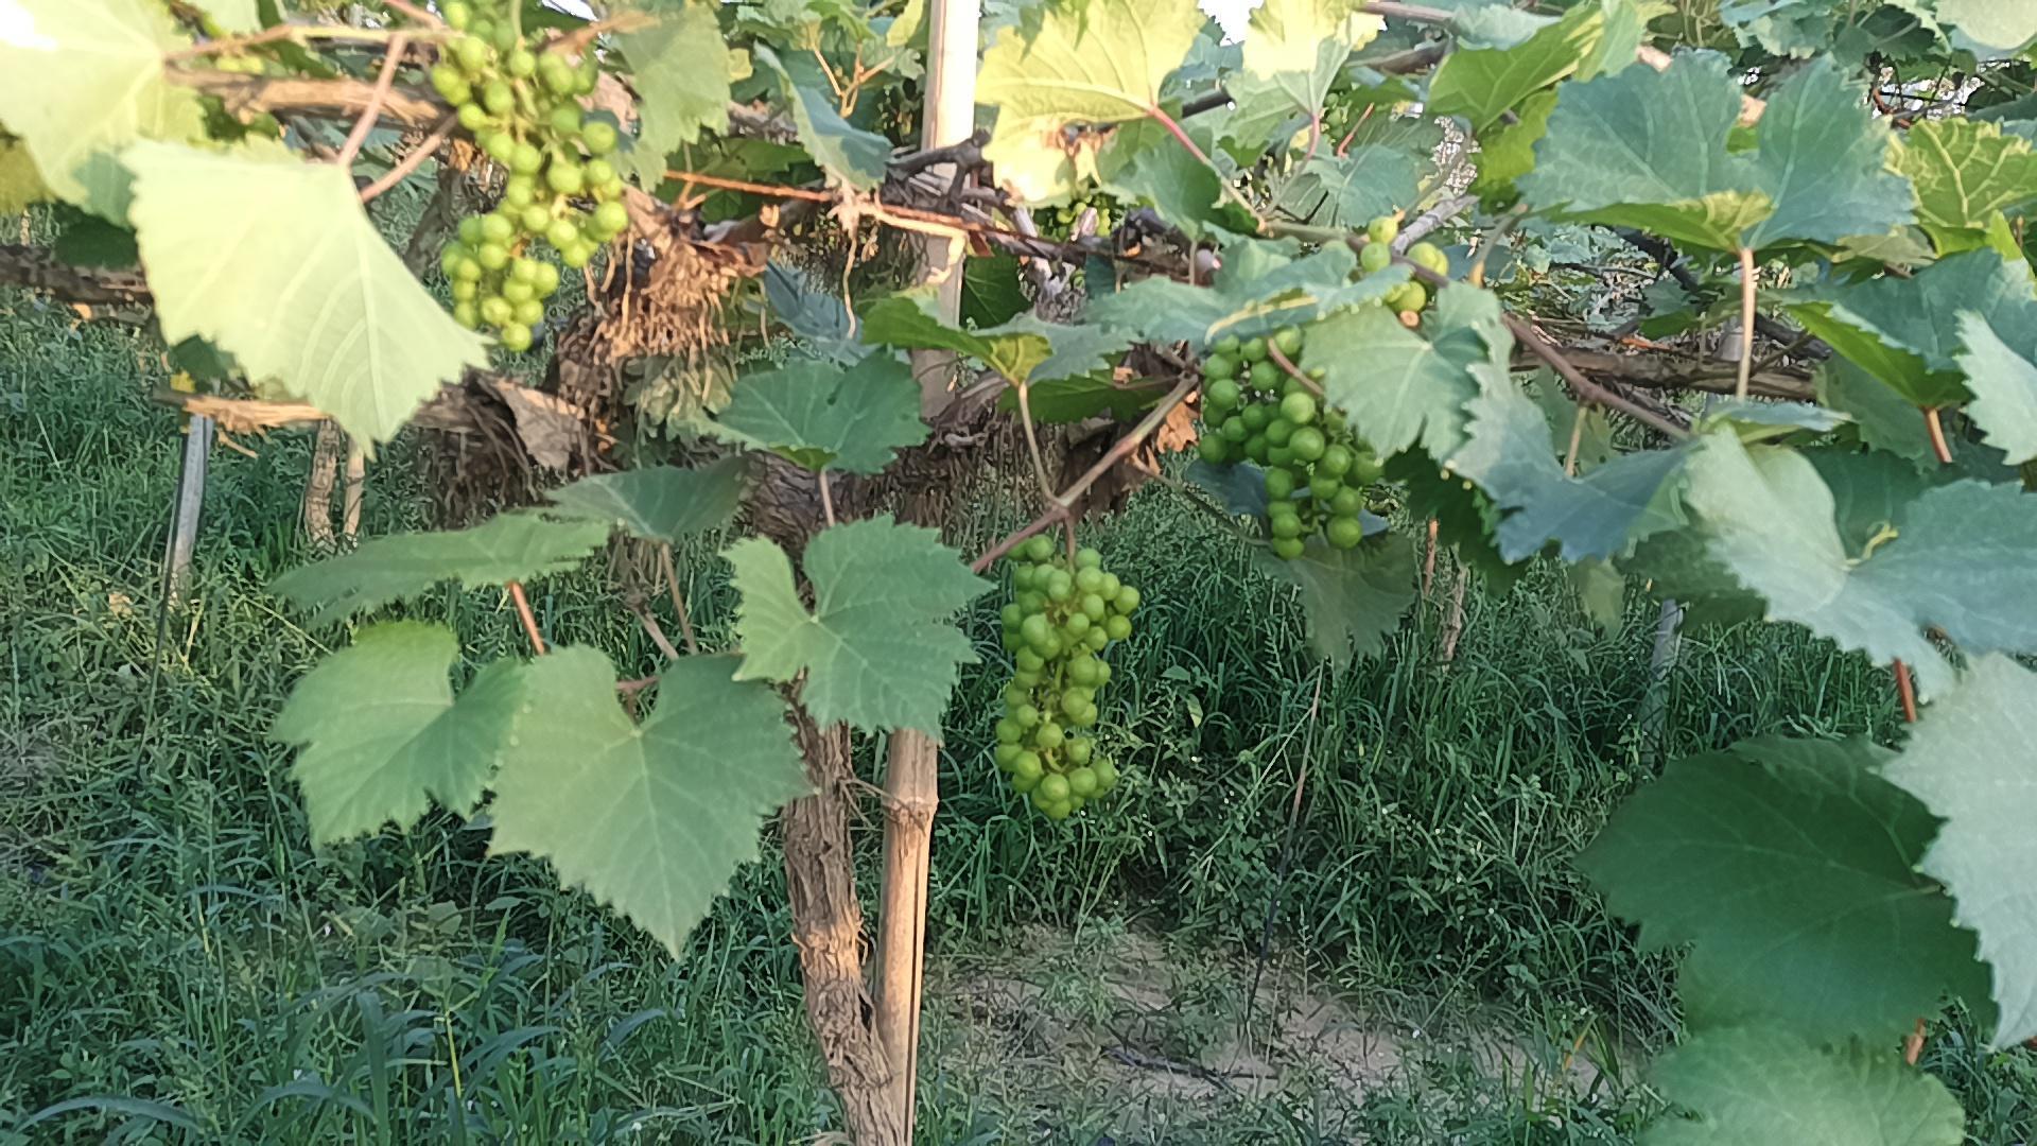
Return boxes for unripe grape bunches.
[182,6,293,77]
[430,0,628,351]
[993,535,1139,819]
[1199,218,1450,560]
